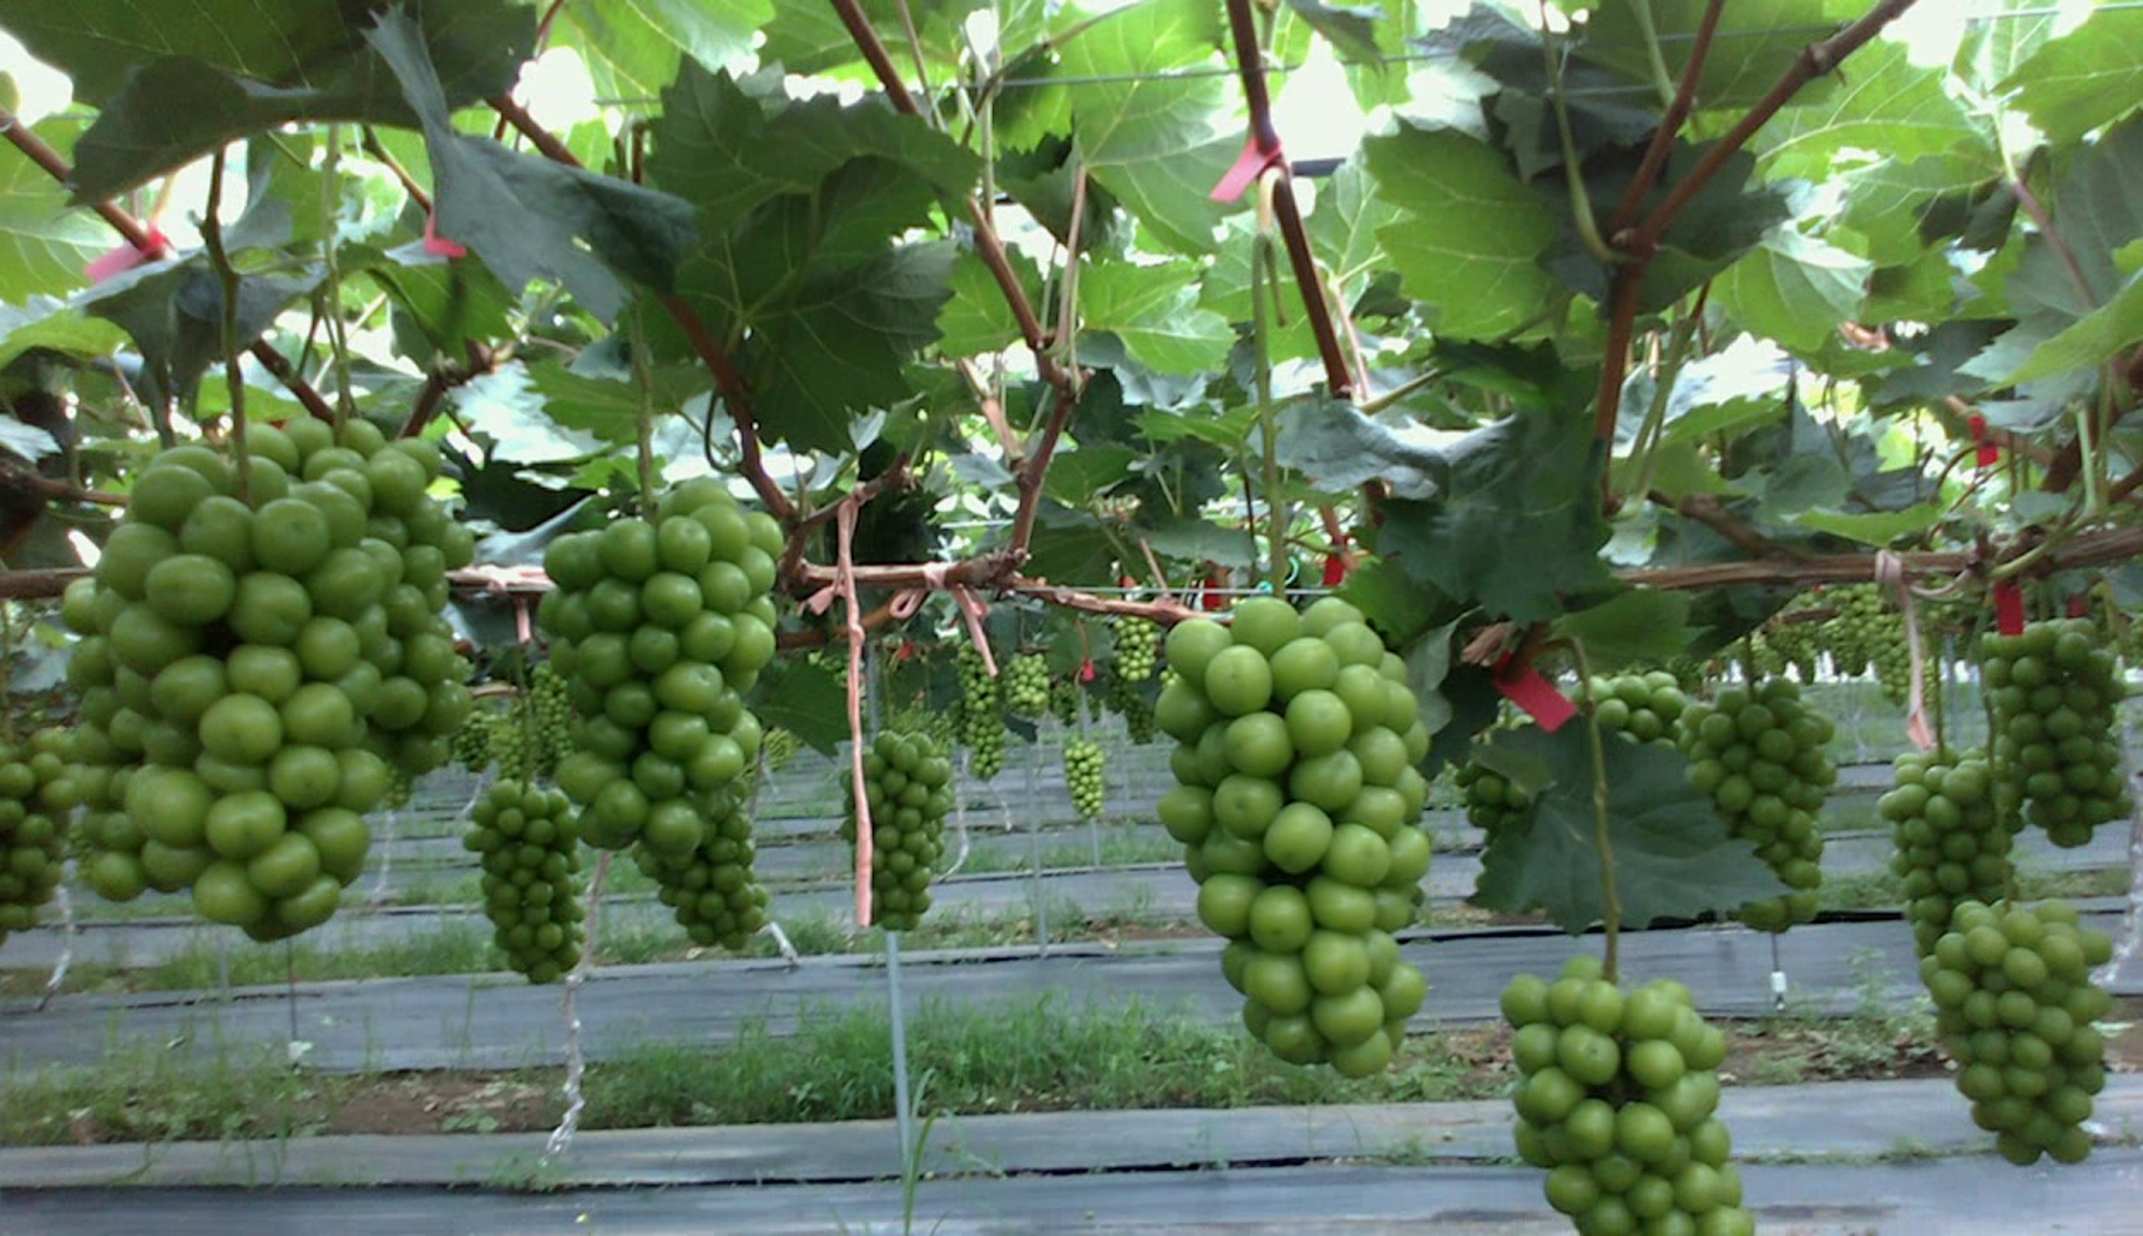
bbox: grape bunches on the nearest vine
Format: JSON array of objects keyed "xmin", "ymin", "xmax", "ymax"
[
  {"xmin": 1920, "ymin": 900, "xmax": 2116, "ymax": 1169},
  {"xmin": 1496, "ymin": 956, "xmax": 1753, "ymax": 1234},
  {"xmin": 89, "ymin": 422, "xmax": 404, "ymax": 944},
  {"xmin": 1152, "ymin": 596, "xmax": 1432, "ymax": 1080},
  {"xmin": 282, "ymin": 415, "xmax": 477, "ymax": 776},
  {"xmin": 58, "ymin": 577, "xmax": 151, "ymax": 901},
  {"xmin": 532, "ymin": 474, "xmax": 785, "ymax": 862}
]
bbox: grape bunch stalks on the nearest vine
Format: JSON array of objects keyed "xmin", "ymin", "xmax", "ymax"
[
  {"xmin": 1973, "ymin": 584, "xmax": 2012, "ymax": 913},
  {"xmin": 1252, "ymin": 165, "xmax": 1286, "ymax": 601},
  {"xmin": 321, "ymin": 124, "xmax": 352, "ymax": 446},
  {"xmin": 1535, "ymin": 635, "xmax": 1619, "ymax": 985},
  {"xmin": 196, "ymin": 148, "xmax": 252, "ymax": 508},
  {"xmin": 627, "ymin": 282, "xmax": 659, "ymax": 527}
]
